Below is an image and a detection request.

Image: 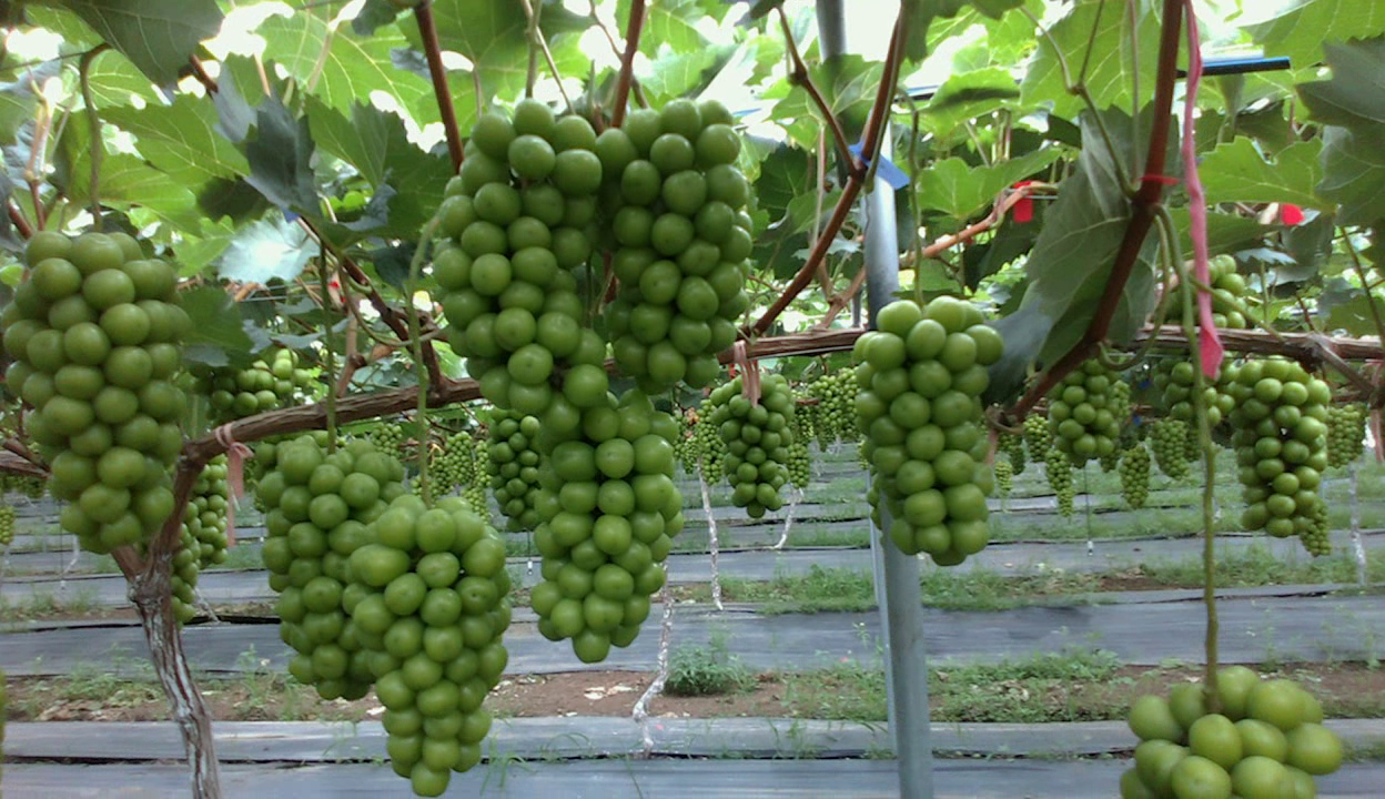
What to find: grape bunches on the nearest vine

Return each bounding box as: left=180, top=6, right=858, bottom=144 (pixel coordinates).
left=343, top=494, right=513, bottom=798
left=852, top=295, right=1004, bottom=566
left=434, top=99, right=608, bottom=435
left=594, top=98, right=755, bottom=396
left=530, top=390, right=685, bottom=663
left=1119, top=664, right=1342, bottom=798
left=256, top=435, right=406, bottom=701
left=0, top=229, right=192, bottom=555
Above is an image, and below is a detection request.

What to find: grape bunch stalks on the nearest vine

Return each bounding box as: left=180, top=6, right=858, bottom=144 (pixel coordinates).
left=406, top=214, right=441, bottom=510
left=1154, top=203, right=1224, bottom=715
left=588, top=1, right=650, bottom=109
left=896, top=84, right=926, bottom=310
left=79, top=43, right=112, bottom=232
left=524, top=0, right=543, bottom=98
left=319, top=240, right=336, bottom=456
left=585, top=250, right=593, bottom=330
